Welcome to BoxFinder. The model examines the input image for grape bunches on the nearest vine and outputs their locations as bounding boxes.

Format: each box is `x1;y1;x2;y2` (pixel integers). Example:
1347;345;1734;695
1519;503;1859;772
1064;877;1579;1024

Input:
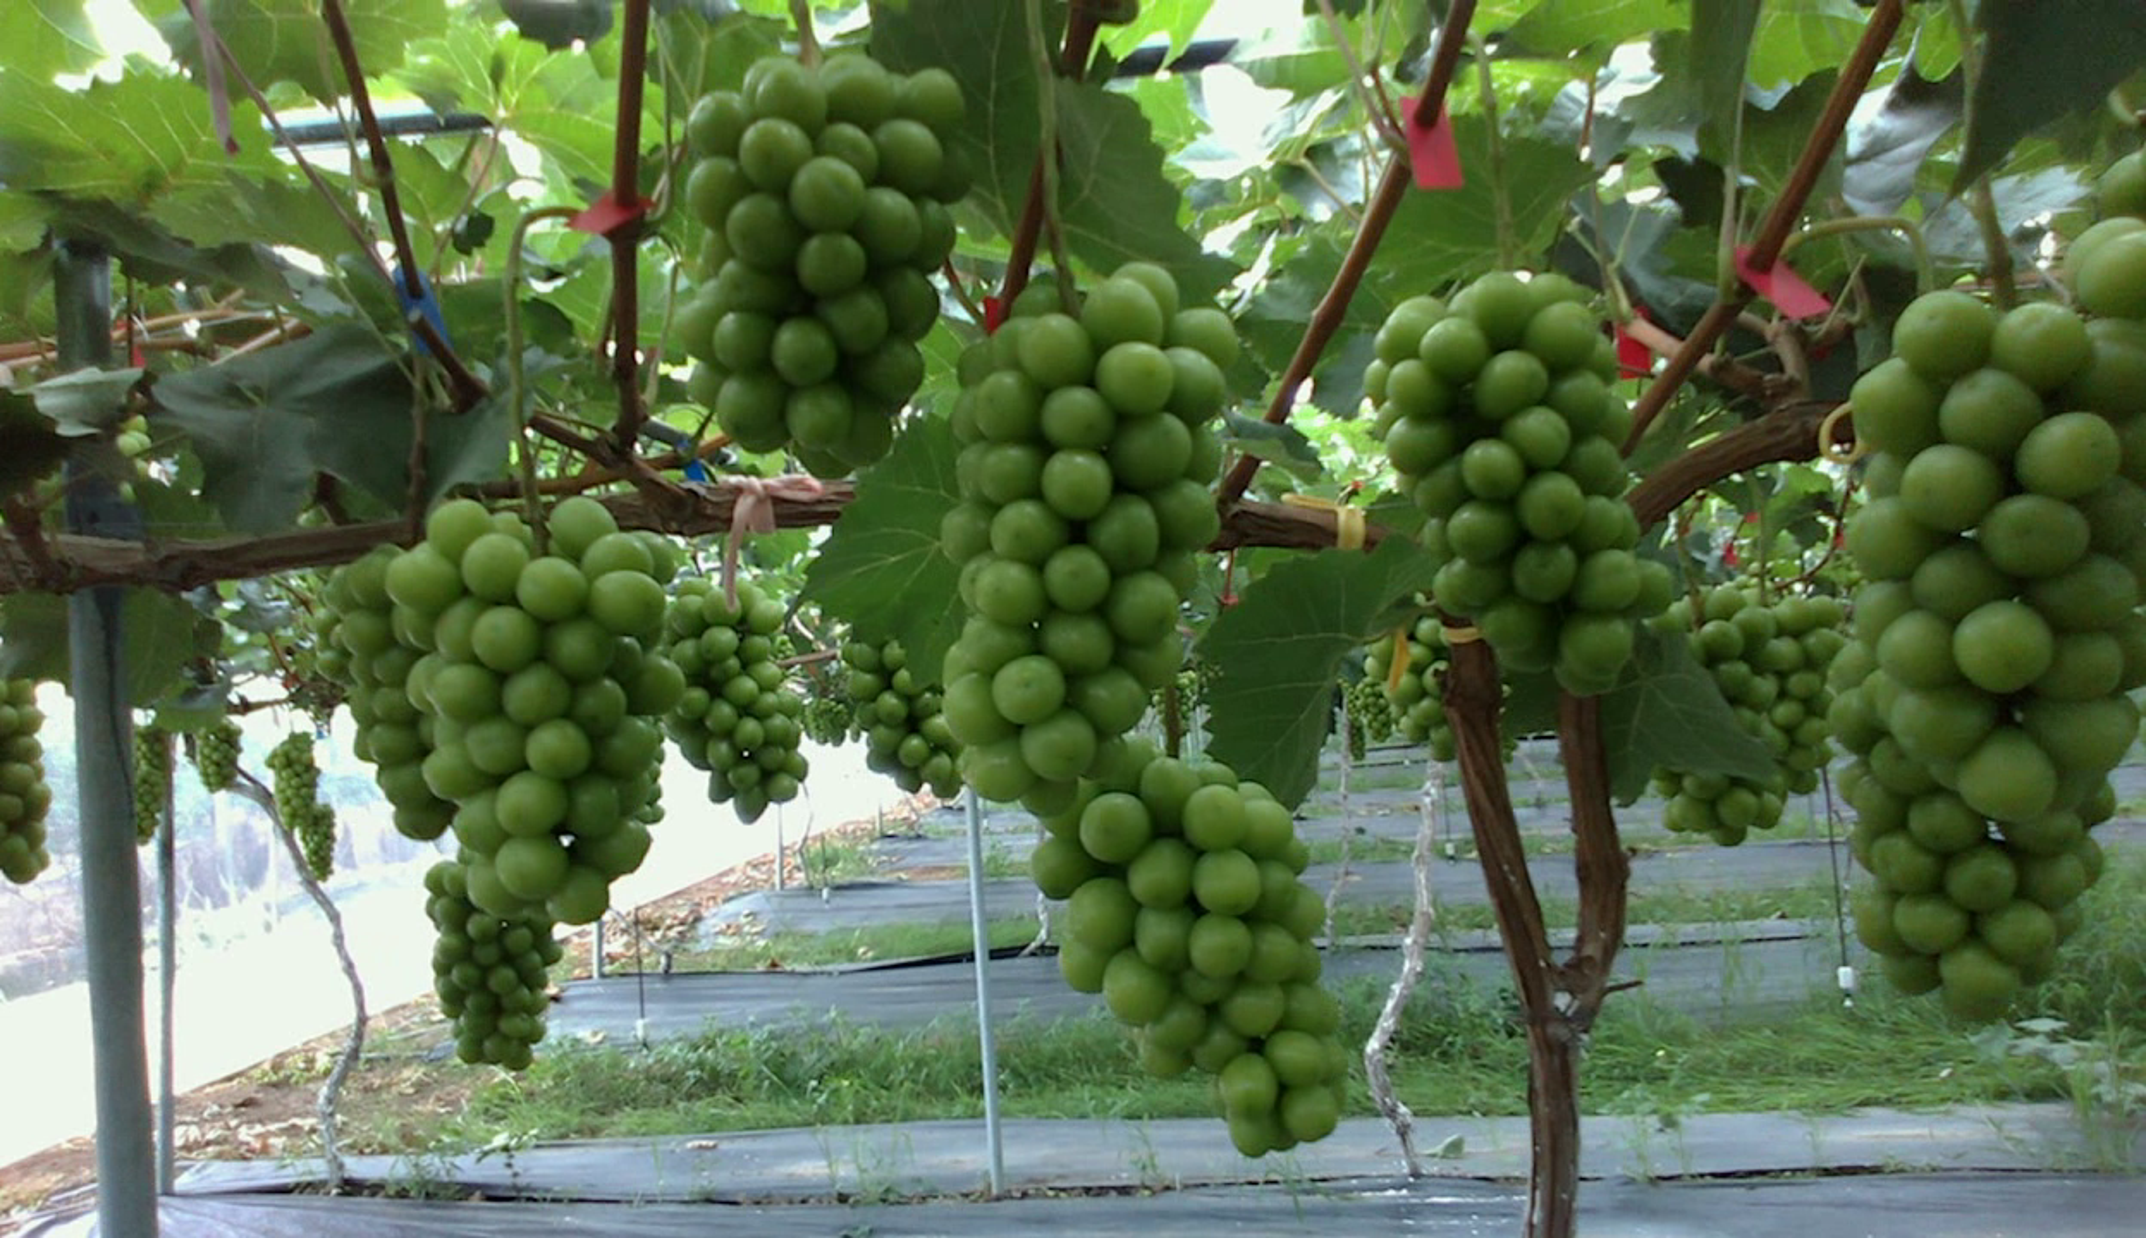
674;55;973;480
1847;289;2144;820
327;543;454;841
1362;272;1675;695
937;263;1236;815
387;499;684;925
1824;641;2115;1023
1025;734;1346;1155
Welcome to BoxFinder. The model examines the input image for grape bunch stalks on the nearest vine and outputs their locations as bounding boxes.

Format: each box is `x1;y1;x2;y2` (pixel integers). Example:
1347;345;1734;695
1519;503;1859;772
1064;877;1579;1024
1162;683;1181;758
506;205;581;557
1028;2;1080;318
789;0;815;67
402;358;428;547
1976;179;2015;309
1783;215;1933;292
1467;29;1513;268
